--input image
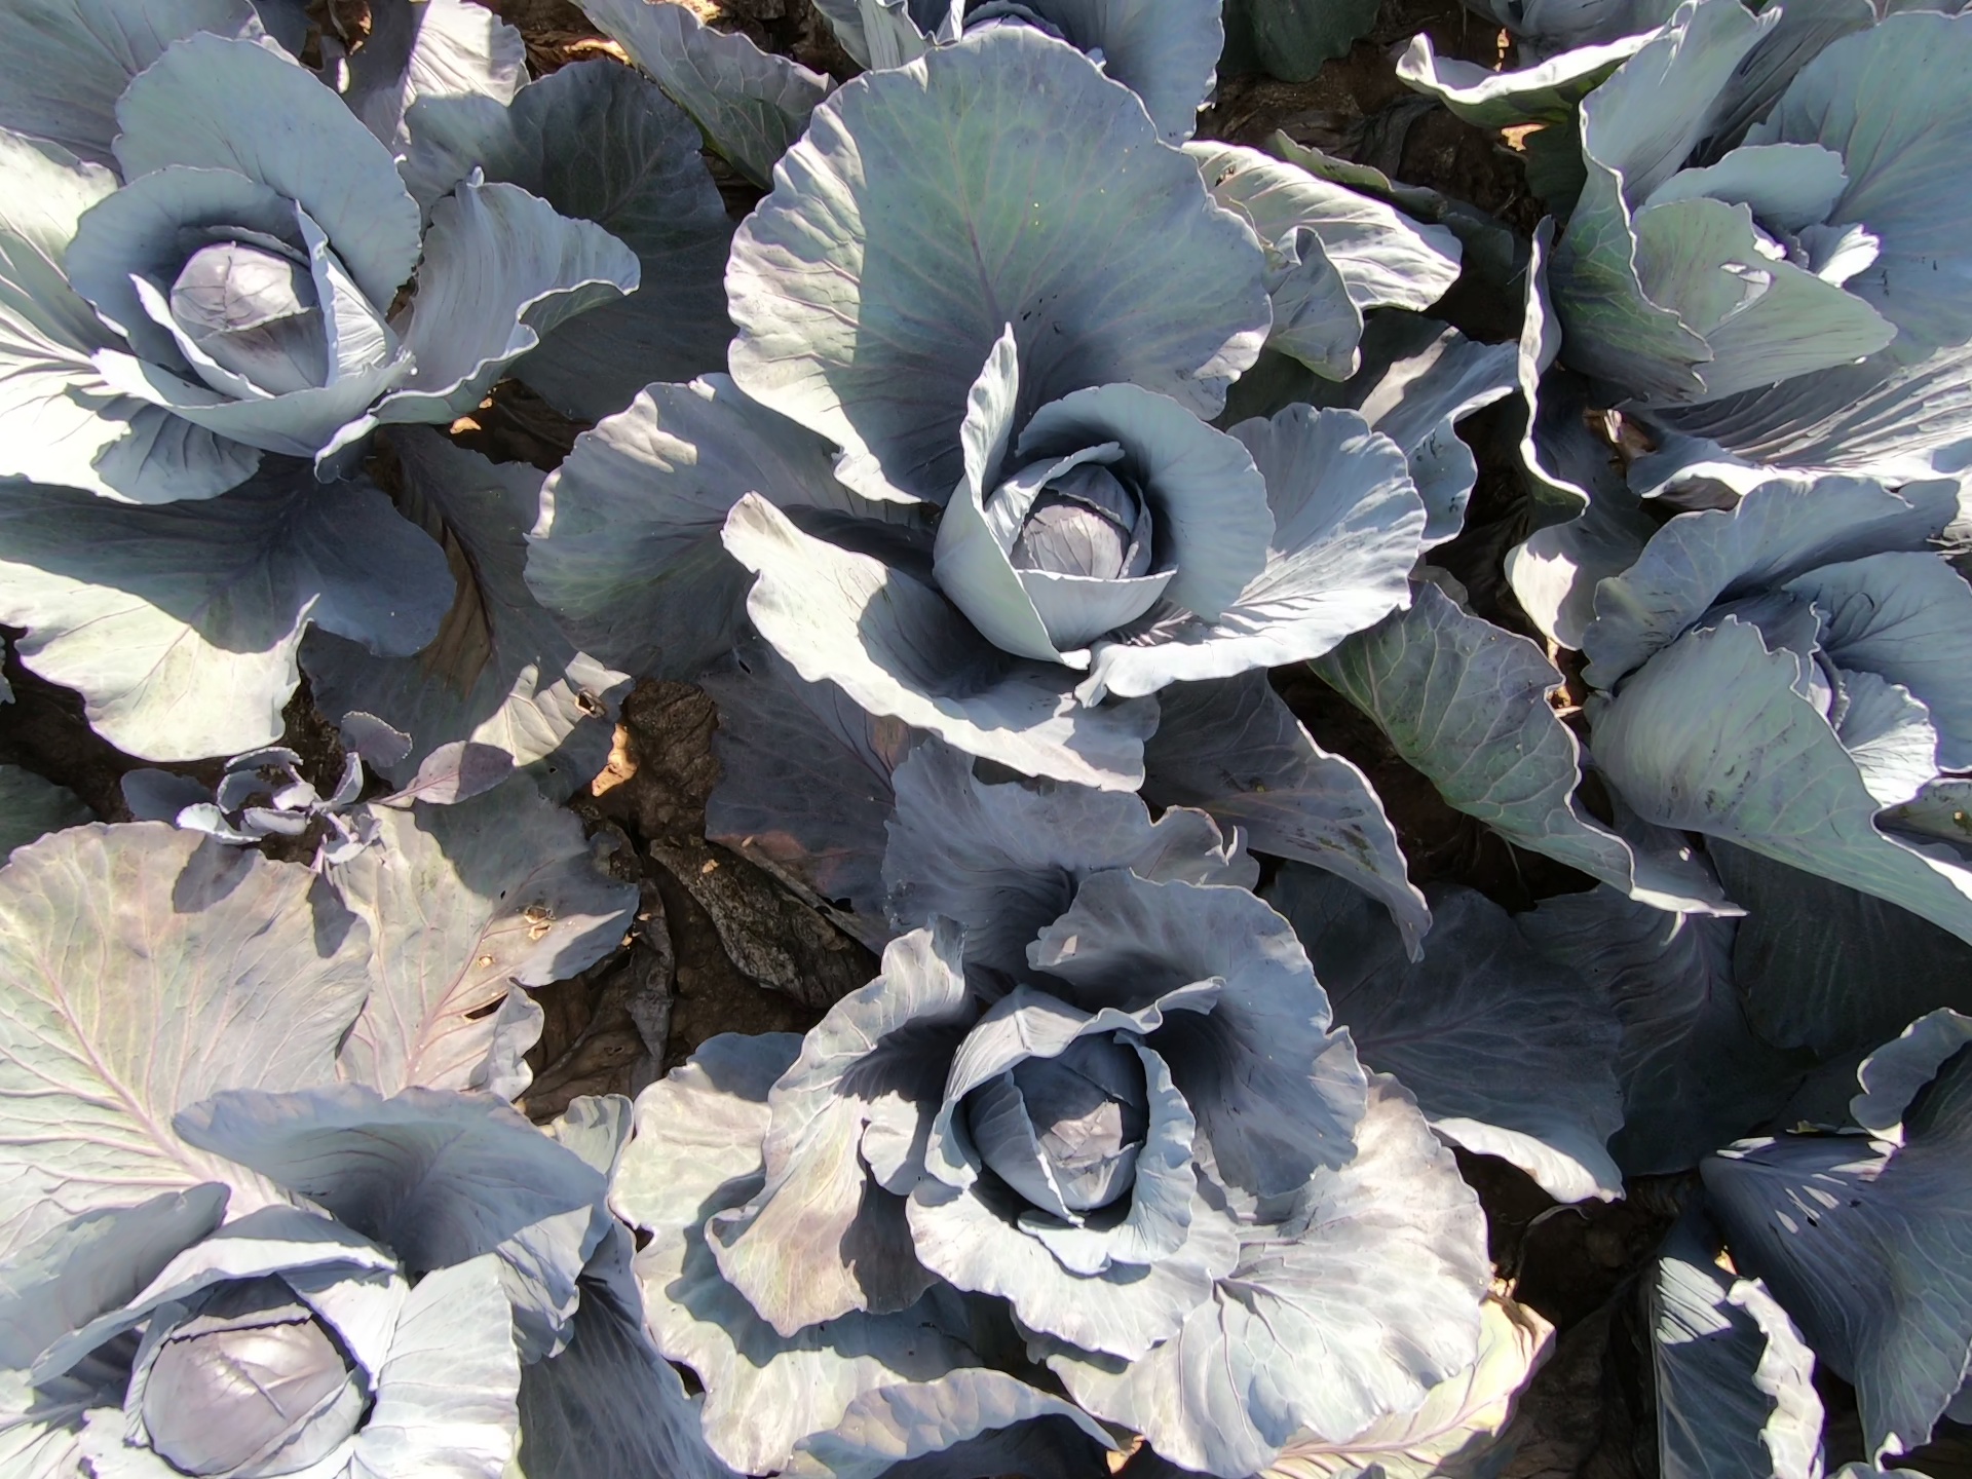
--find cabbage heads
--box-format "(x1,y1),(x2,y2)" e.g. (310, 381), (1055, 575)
(145, 1252), (388, 1476)
(1660, 219), (1788, 367)
(167, 231), (369, 404)
(968, 1013), (1156, 1204)
(1693, 631), (1834, 781)
(986, 460), (1148, 628)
